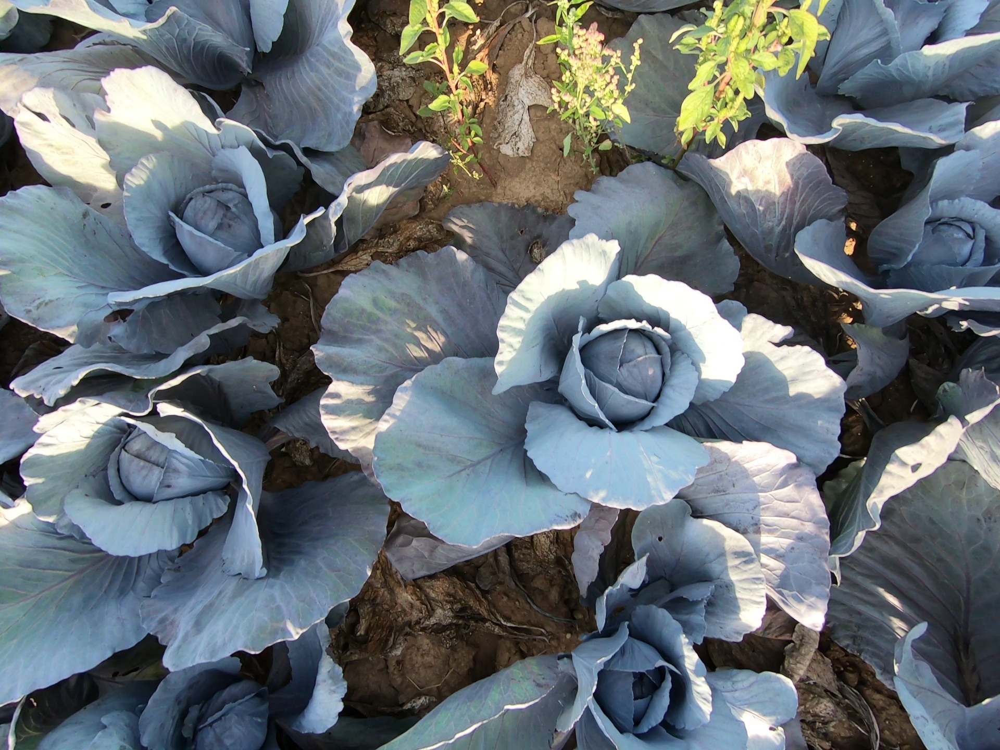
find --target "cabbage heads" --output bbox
[841,0,935,85]
[595,645,664,720]
[119,416,216,498]
[901,219,981,289]
[198,685,269,747]
[181,187,273,273]
[578,329,662,420]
